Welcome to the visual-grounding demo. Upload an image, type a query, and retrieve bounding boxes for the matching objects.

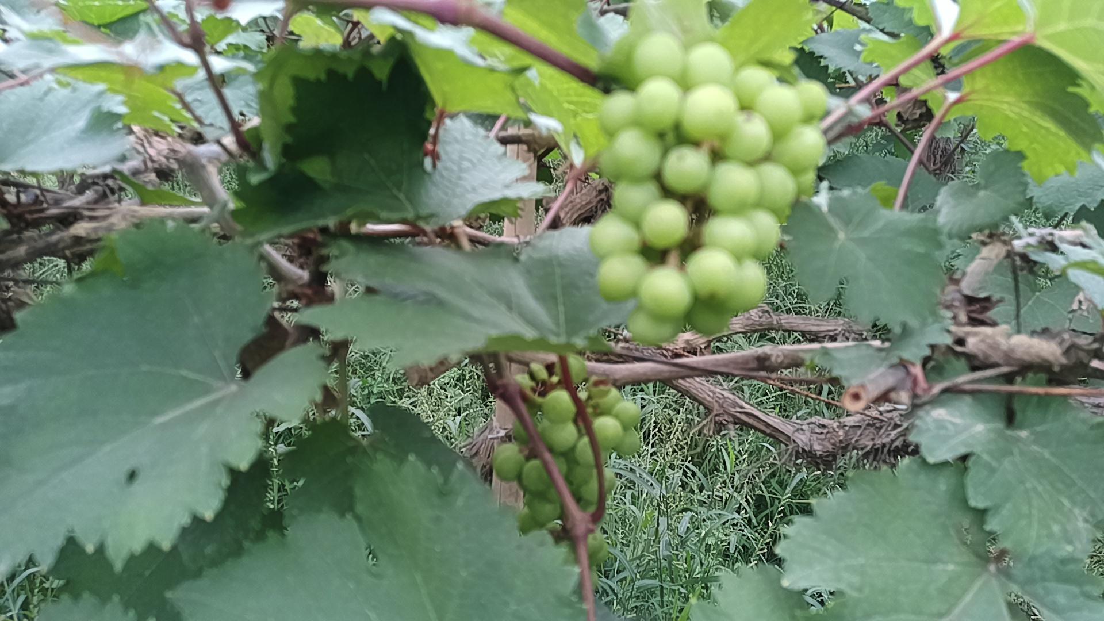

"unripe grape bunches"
[484,355,639,567]
[589,33,826,344]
